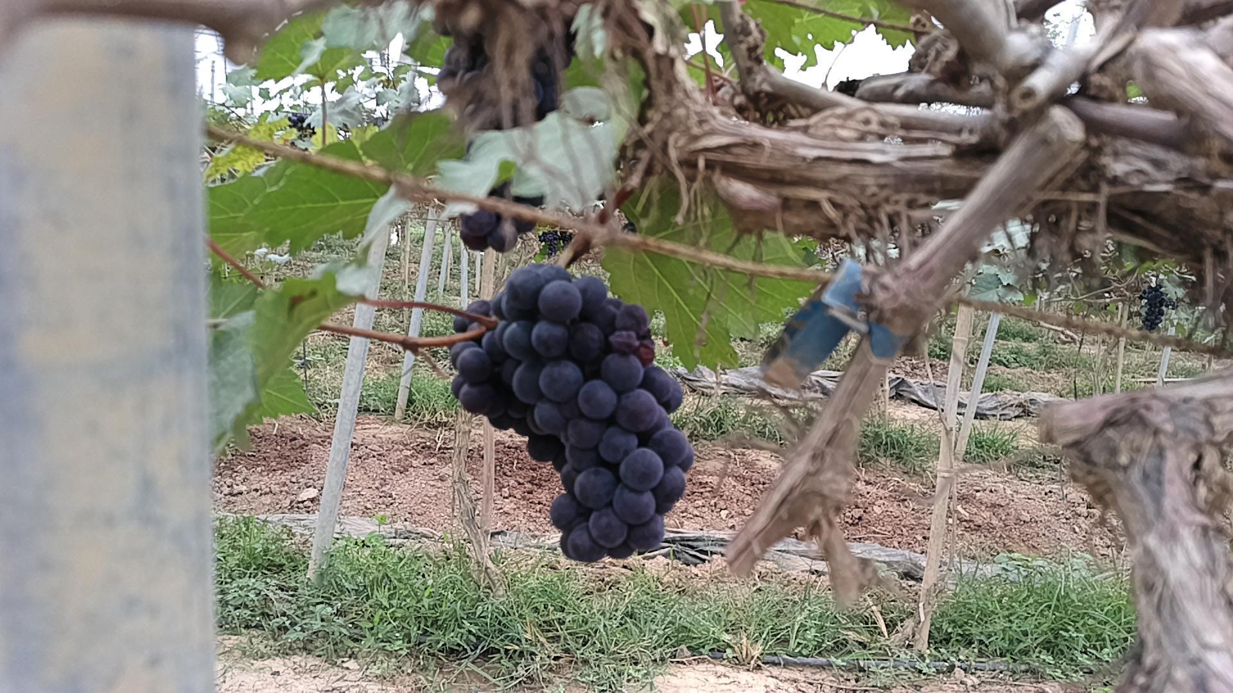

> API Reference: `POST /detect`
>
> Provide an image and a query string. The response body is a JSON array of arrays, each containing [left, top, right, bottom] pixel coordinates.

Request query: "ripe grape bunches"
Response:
[[452, 264, 694, 561], [539, 230, 572, 257], [432, 33, 566, 252], [287, 111, 315, 150]]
